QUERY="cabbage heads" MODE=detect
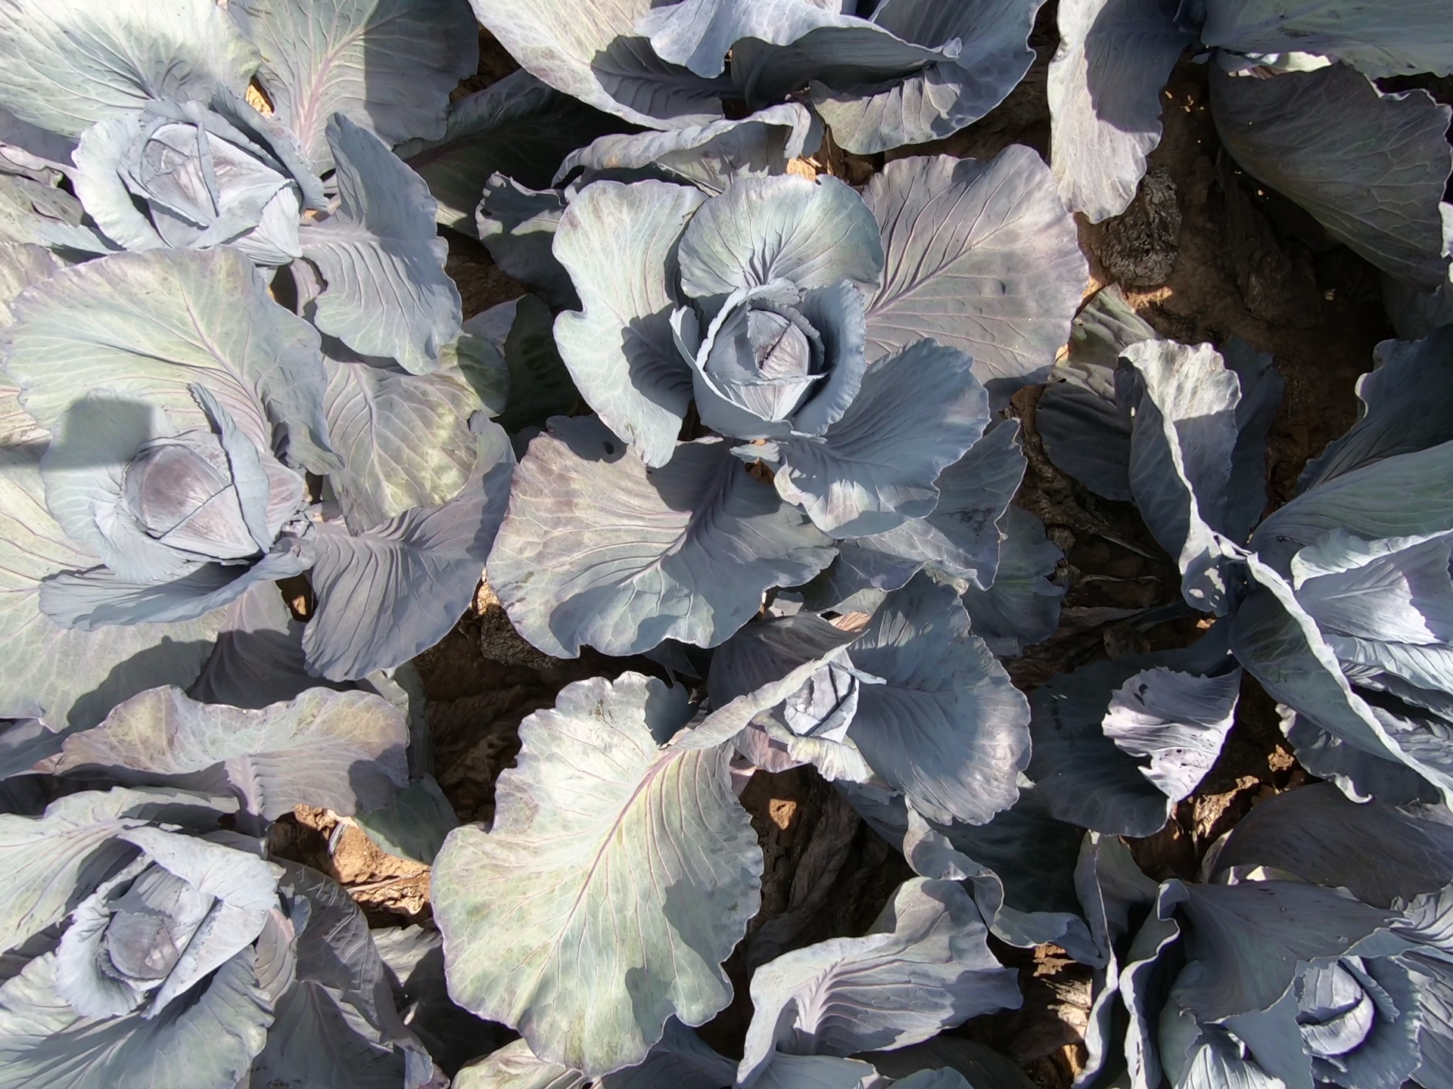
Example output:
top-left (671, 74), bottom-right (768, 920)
top-left (102, 835), bottom-right (269, 991)
top-left (722, 618), bottom-right (860, 774)
top-left (703, 303), bottom-right (815, 423)
top-left (122, 430), bottom-right (294, 562)
top-left (1212, 907), bottom-right (1377, 1060)
top-left (738, 2), bottom-right (858, 58)
top-left (138, 118), bottom-right (285, 264)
